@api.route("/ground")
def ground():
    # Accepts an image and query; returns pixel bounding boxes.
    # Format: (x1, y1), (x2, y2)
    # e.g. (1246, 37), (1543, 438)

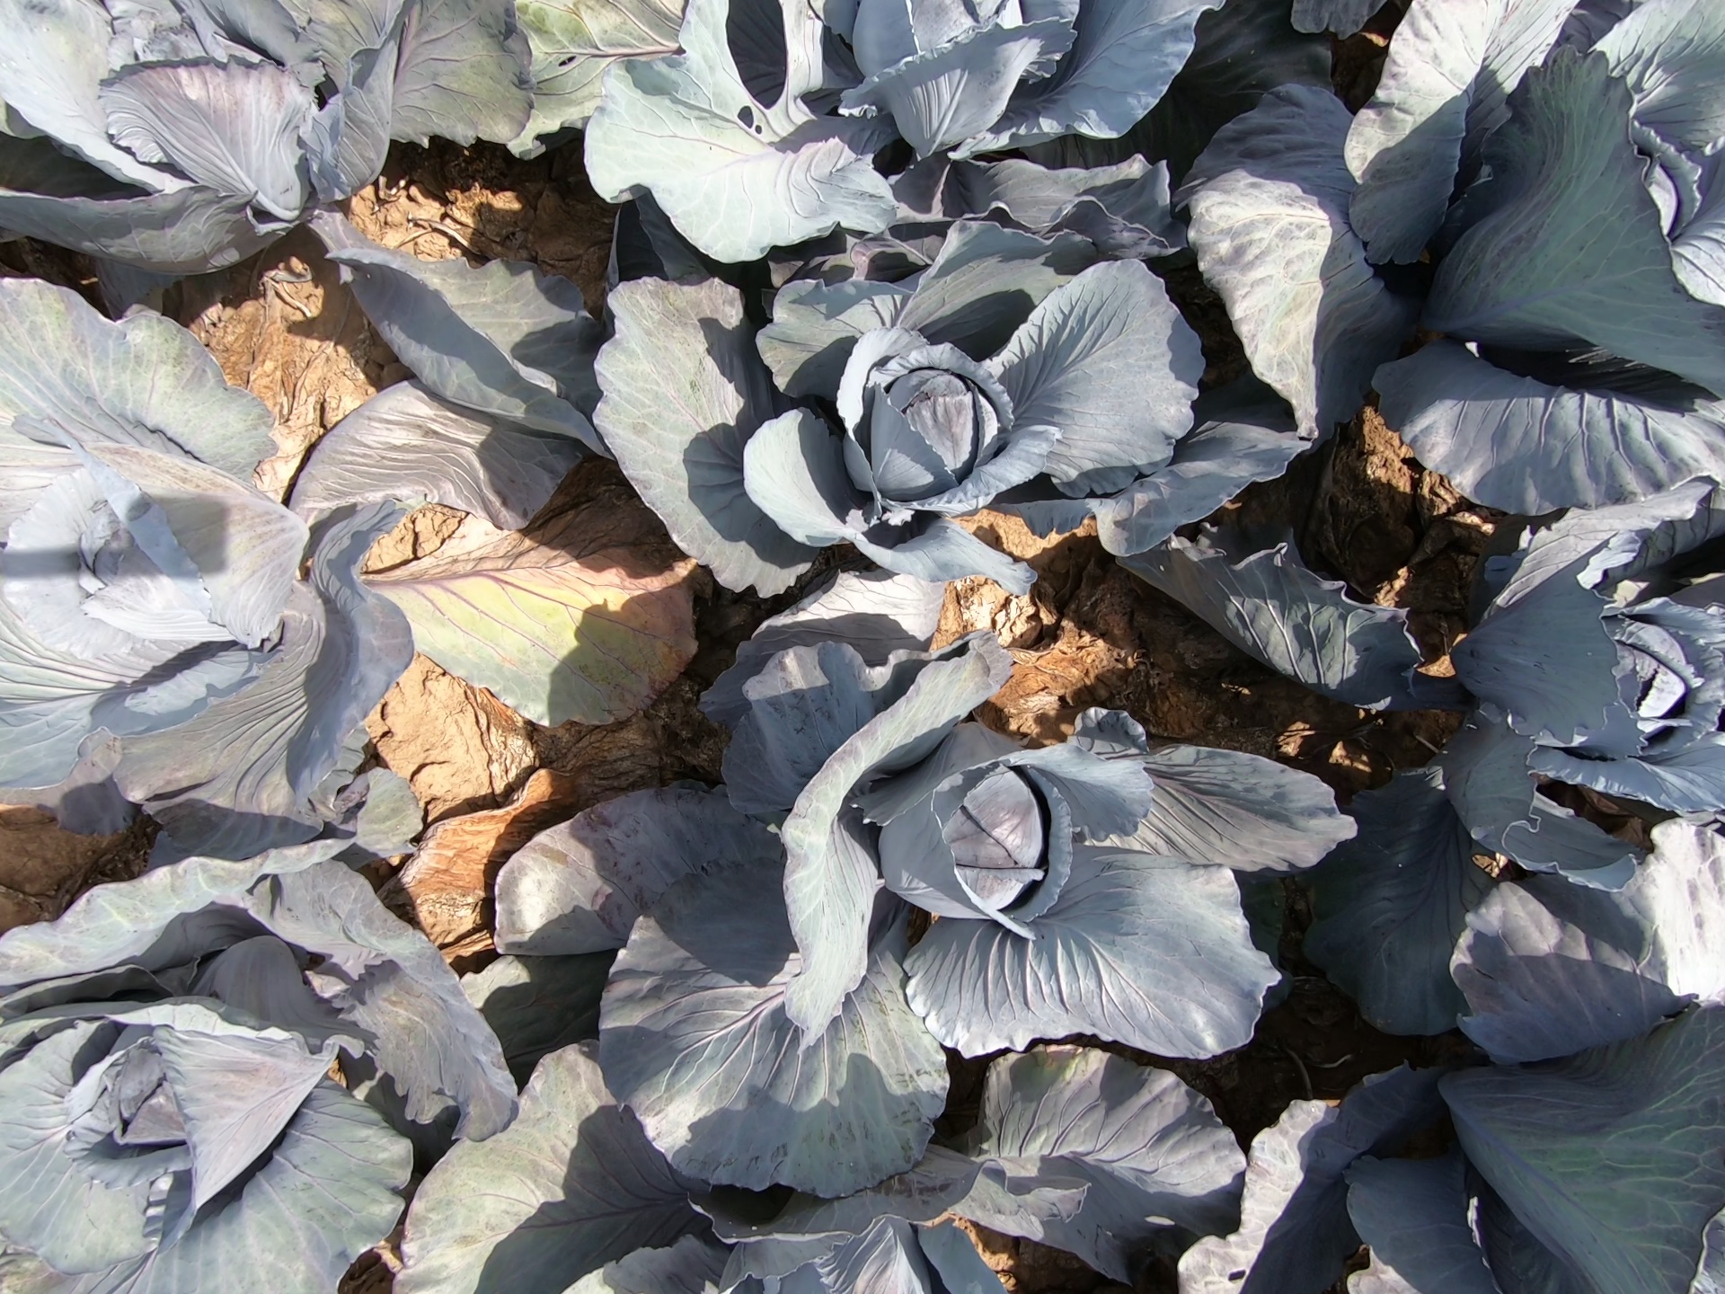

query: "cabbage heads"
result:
(867, 2), (1029, 111)
(1551, 158), (1679, 284)
(890, 752), (1049, 917)
(137, 18), (307, 184)
(89, 502), (282, 638)
(770, 1201), (942, 1288)
(104, 1015), (284, 1148)
(880, 368), (1000, 495)
(1548, 618), (1694, 757)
